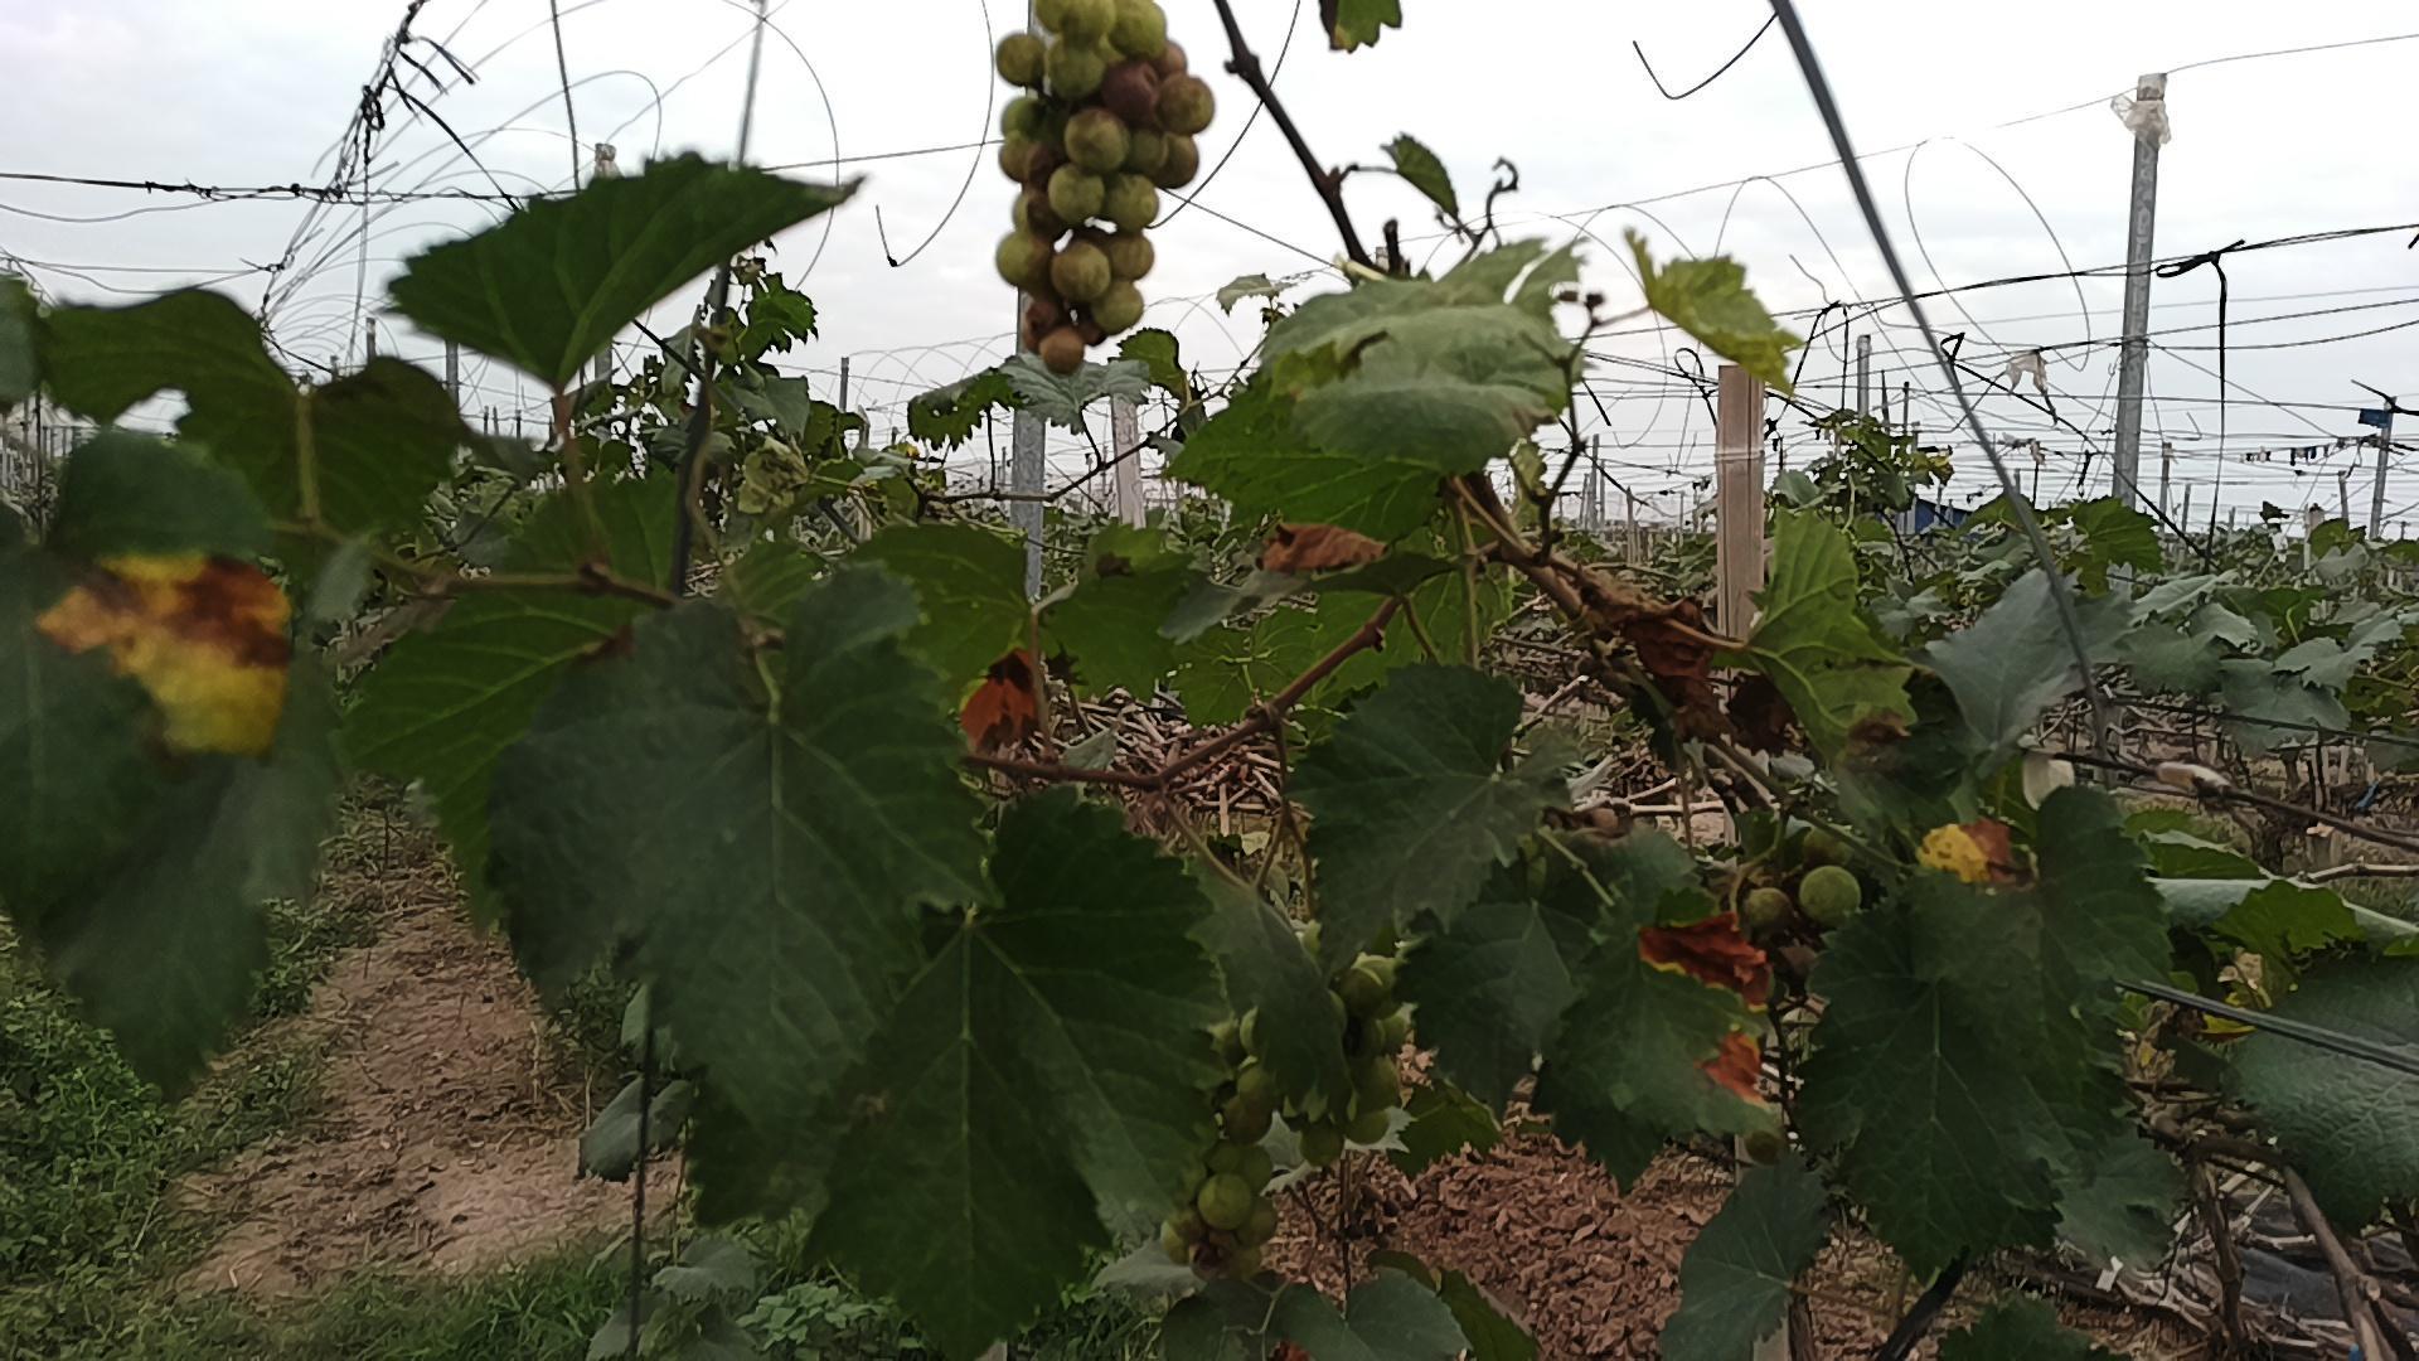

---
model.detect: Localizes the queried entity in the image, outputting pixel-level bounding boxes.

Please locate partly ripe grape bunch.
[997,0,1212,374]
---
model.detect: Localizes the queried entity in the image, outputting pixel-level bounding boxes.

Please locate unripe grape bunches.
[1162,954,1407,1279]
[1739,864,1861,936]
